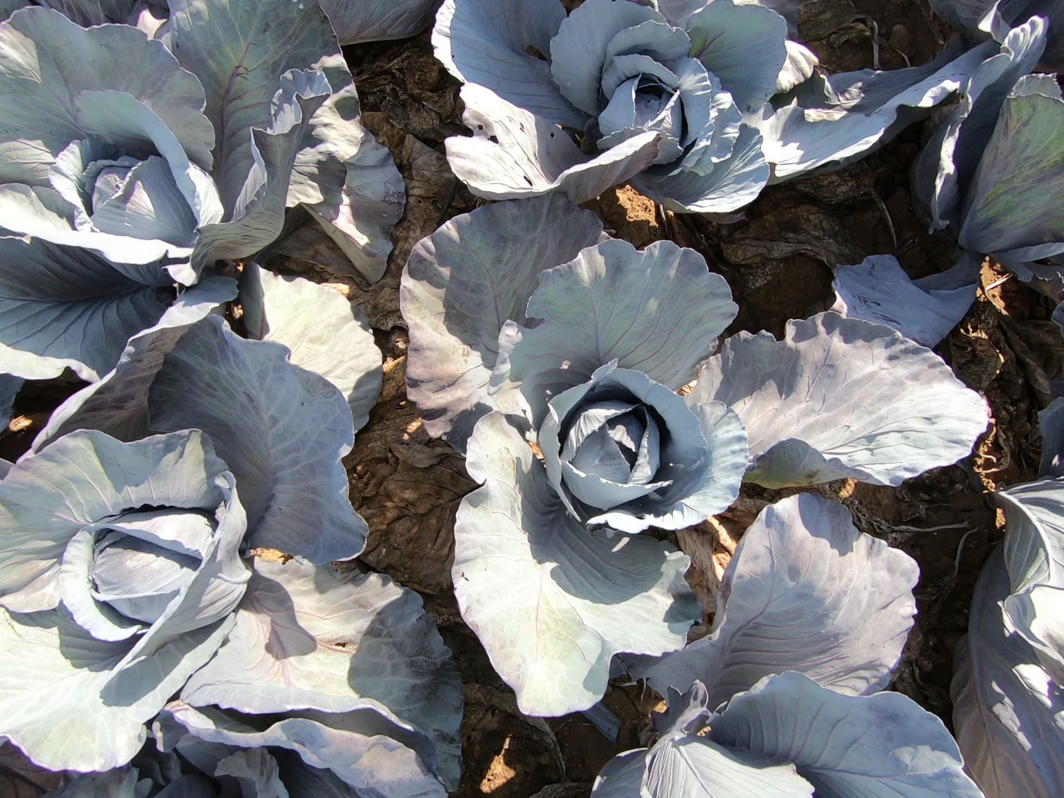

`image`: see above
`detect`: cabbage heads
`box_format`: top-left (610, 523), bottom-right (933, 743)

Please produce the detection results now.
top-left (91, 160), bottom-right (185, 241)
top-left (95, 513), bottom-right (223, 616)
top-left (562, 403), bottom-right (658, 502)
top-left (605, 90), bottom-right (681, 165)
